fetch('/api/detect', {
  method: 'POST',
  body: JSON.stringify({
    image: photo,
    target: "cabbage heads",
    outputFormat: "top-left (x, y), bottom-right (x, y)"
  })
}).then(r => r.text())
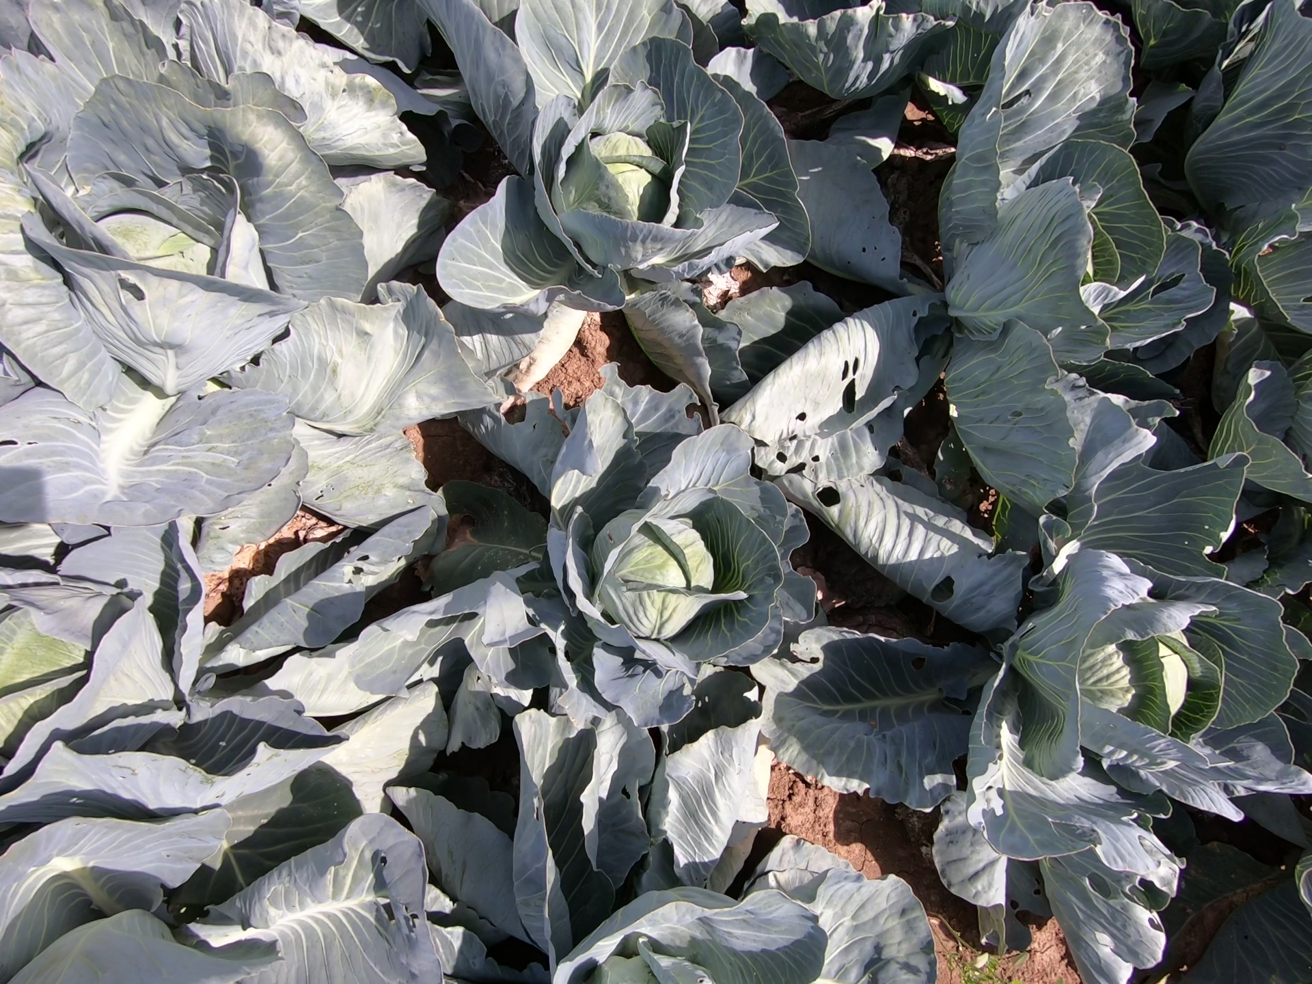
top-left (591, 955), bottom-right (716, 983)
top-left (1005, 222), bottom-right (1097, 330)
top-left (560, 132), bottom-right (663, 236)
top-left (596, 513), bottom-right (715, 639)
top-left (1050, 604), bottom-right (1188, 727)
top-left (1, 586), bottom-right (164, 771)
top-left (80, 204), bottom-right (245, 355)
